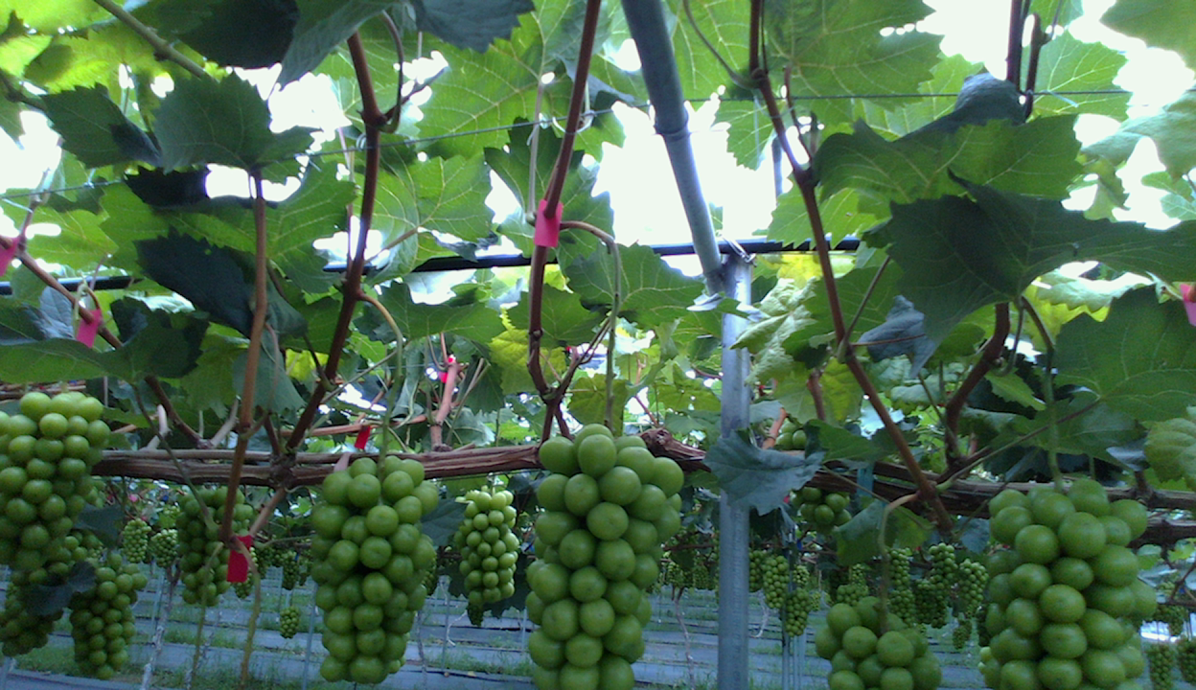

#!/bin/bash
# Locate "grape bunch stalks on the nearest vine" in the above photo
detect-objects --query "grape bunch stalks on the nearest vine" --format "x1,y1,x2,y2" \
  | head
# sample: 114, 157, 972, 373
561, 220, 621, 434
878, 491, 919, 634
1024, 297, 1065, 492
359, 293, 402, 482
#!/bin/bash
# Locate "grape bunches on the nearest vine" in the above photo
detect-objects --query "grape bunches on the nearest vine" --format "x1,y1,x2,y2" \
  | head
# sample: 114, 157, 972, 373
983, 478, 1156, 689
310, 456, 439, 683
814, 597, 942, 689
526, 425, 685, 689
1, 392, 110, 570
